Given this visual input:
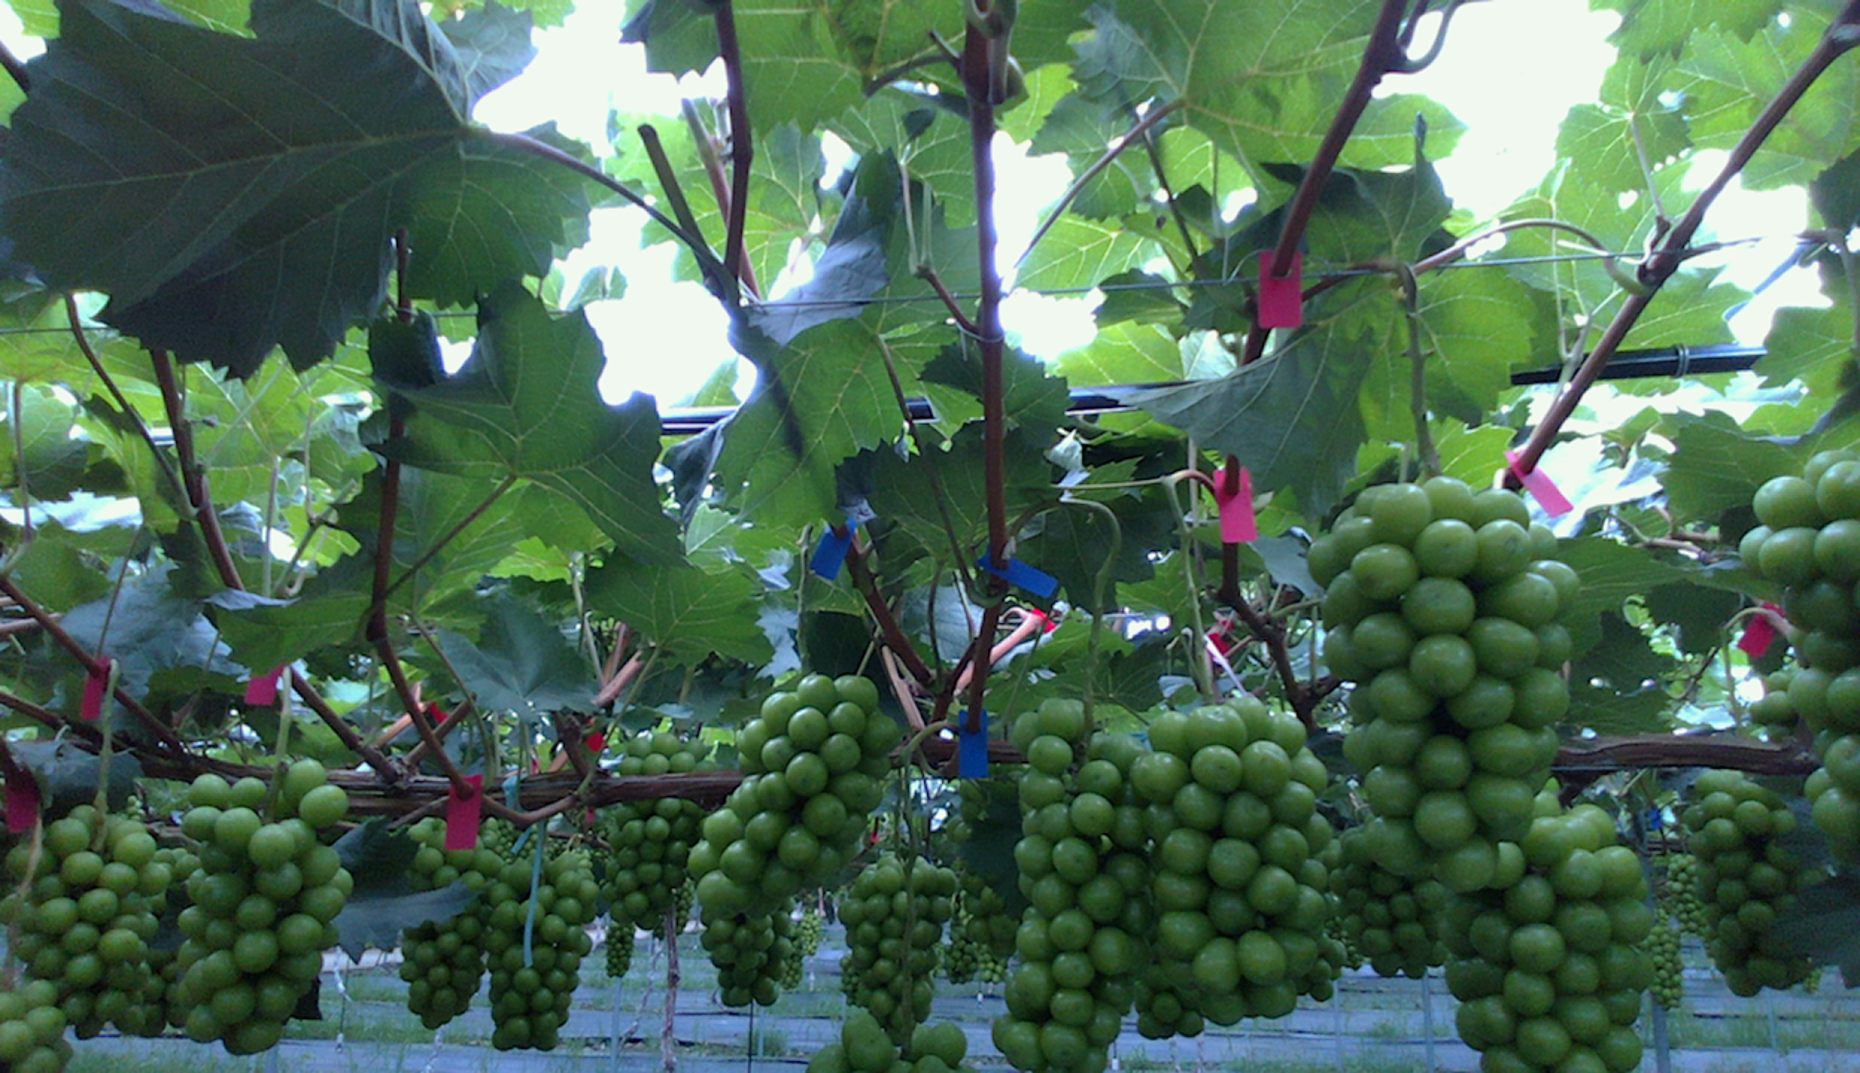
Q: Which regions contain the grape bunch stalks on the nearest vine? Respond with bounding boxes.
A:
[1165,466,1216,703]
[89,660,119,866]
[1009,495,1121,772]
[1358,258,1440,480]
[264,668,292,826]
[796,522,814,677]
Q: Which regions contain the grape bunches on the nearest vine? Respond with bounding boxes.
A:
[805,1012,973,1070]
[176,757,353,1055]
[0,805,170,1040]
[1,979,73,1072]
[1739,450,1859,876]
[991,696,1154,1072]
[687,674,899,922]
[1131,696,1344,1025]
[1440,791,1657,1072]
[1307,474,1580,890]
